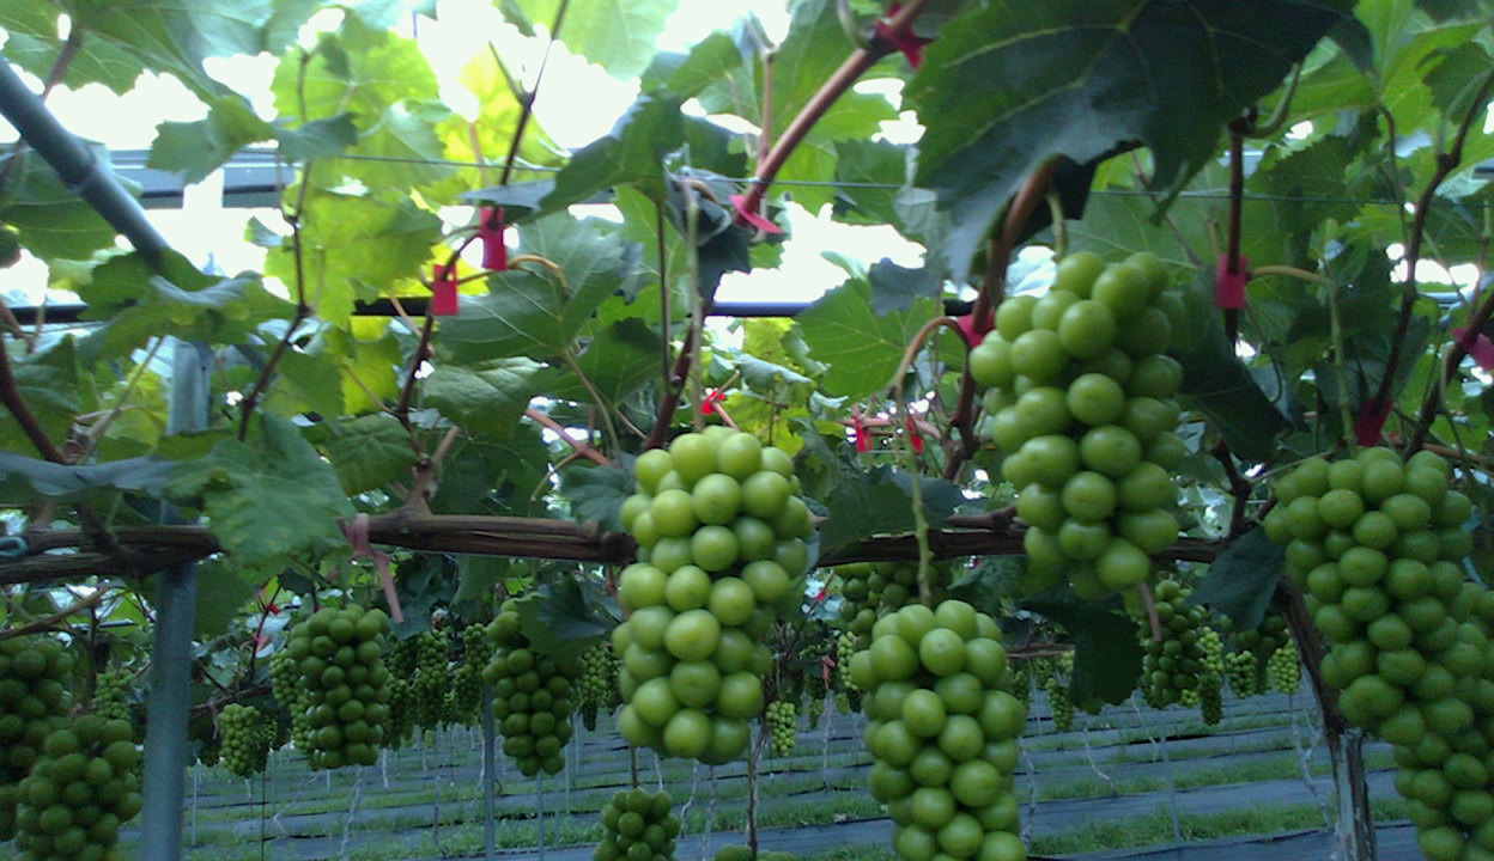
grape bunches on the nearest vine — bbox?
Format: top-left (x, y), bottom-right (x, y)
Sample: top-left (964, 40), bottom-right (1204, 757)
top-left (967, 251), bottom-right (1185, 600)
top-left (1263, 445), bottom-right (1493, 747)
top-left (849, 599), bottom-right (1027, 860)
top-left (1393, 714), bottom-right (1493, 860)
top-left (612, 425), bottom-right (815, 767)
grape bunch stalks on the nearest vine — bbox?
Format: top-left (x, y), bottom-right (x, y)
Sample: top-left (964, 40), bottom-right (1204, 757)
top-left (893, 315), bottom-right (971, 609)
top-left (682, 187), bottom-right (705, 432)
top-left (1247, 263), bottom-right (1358, 458)
top-left (1044, 181), bottom-right (1068, 264)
